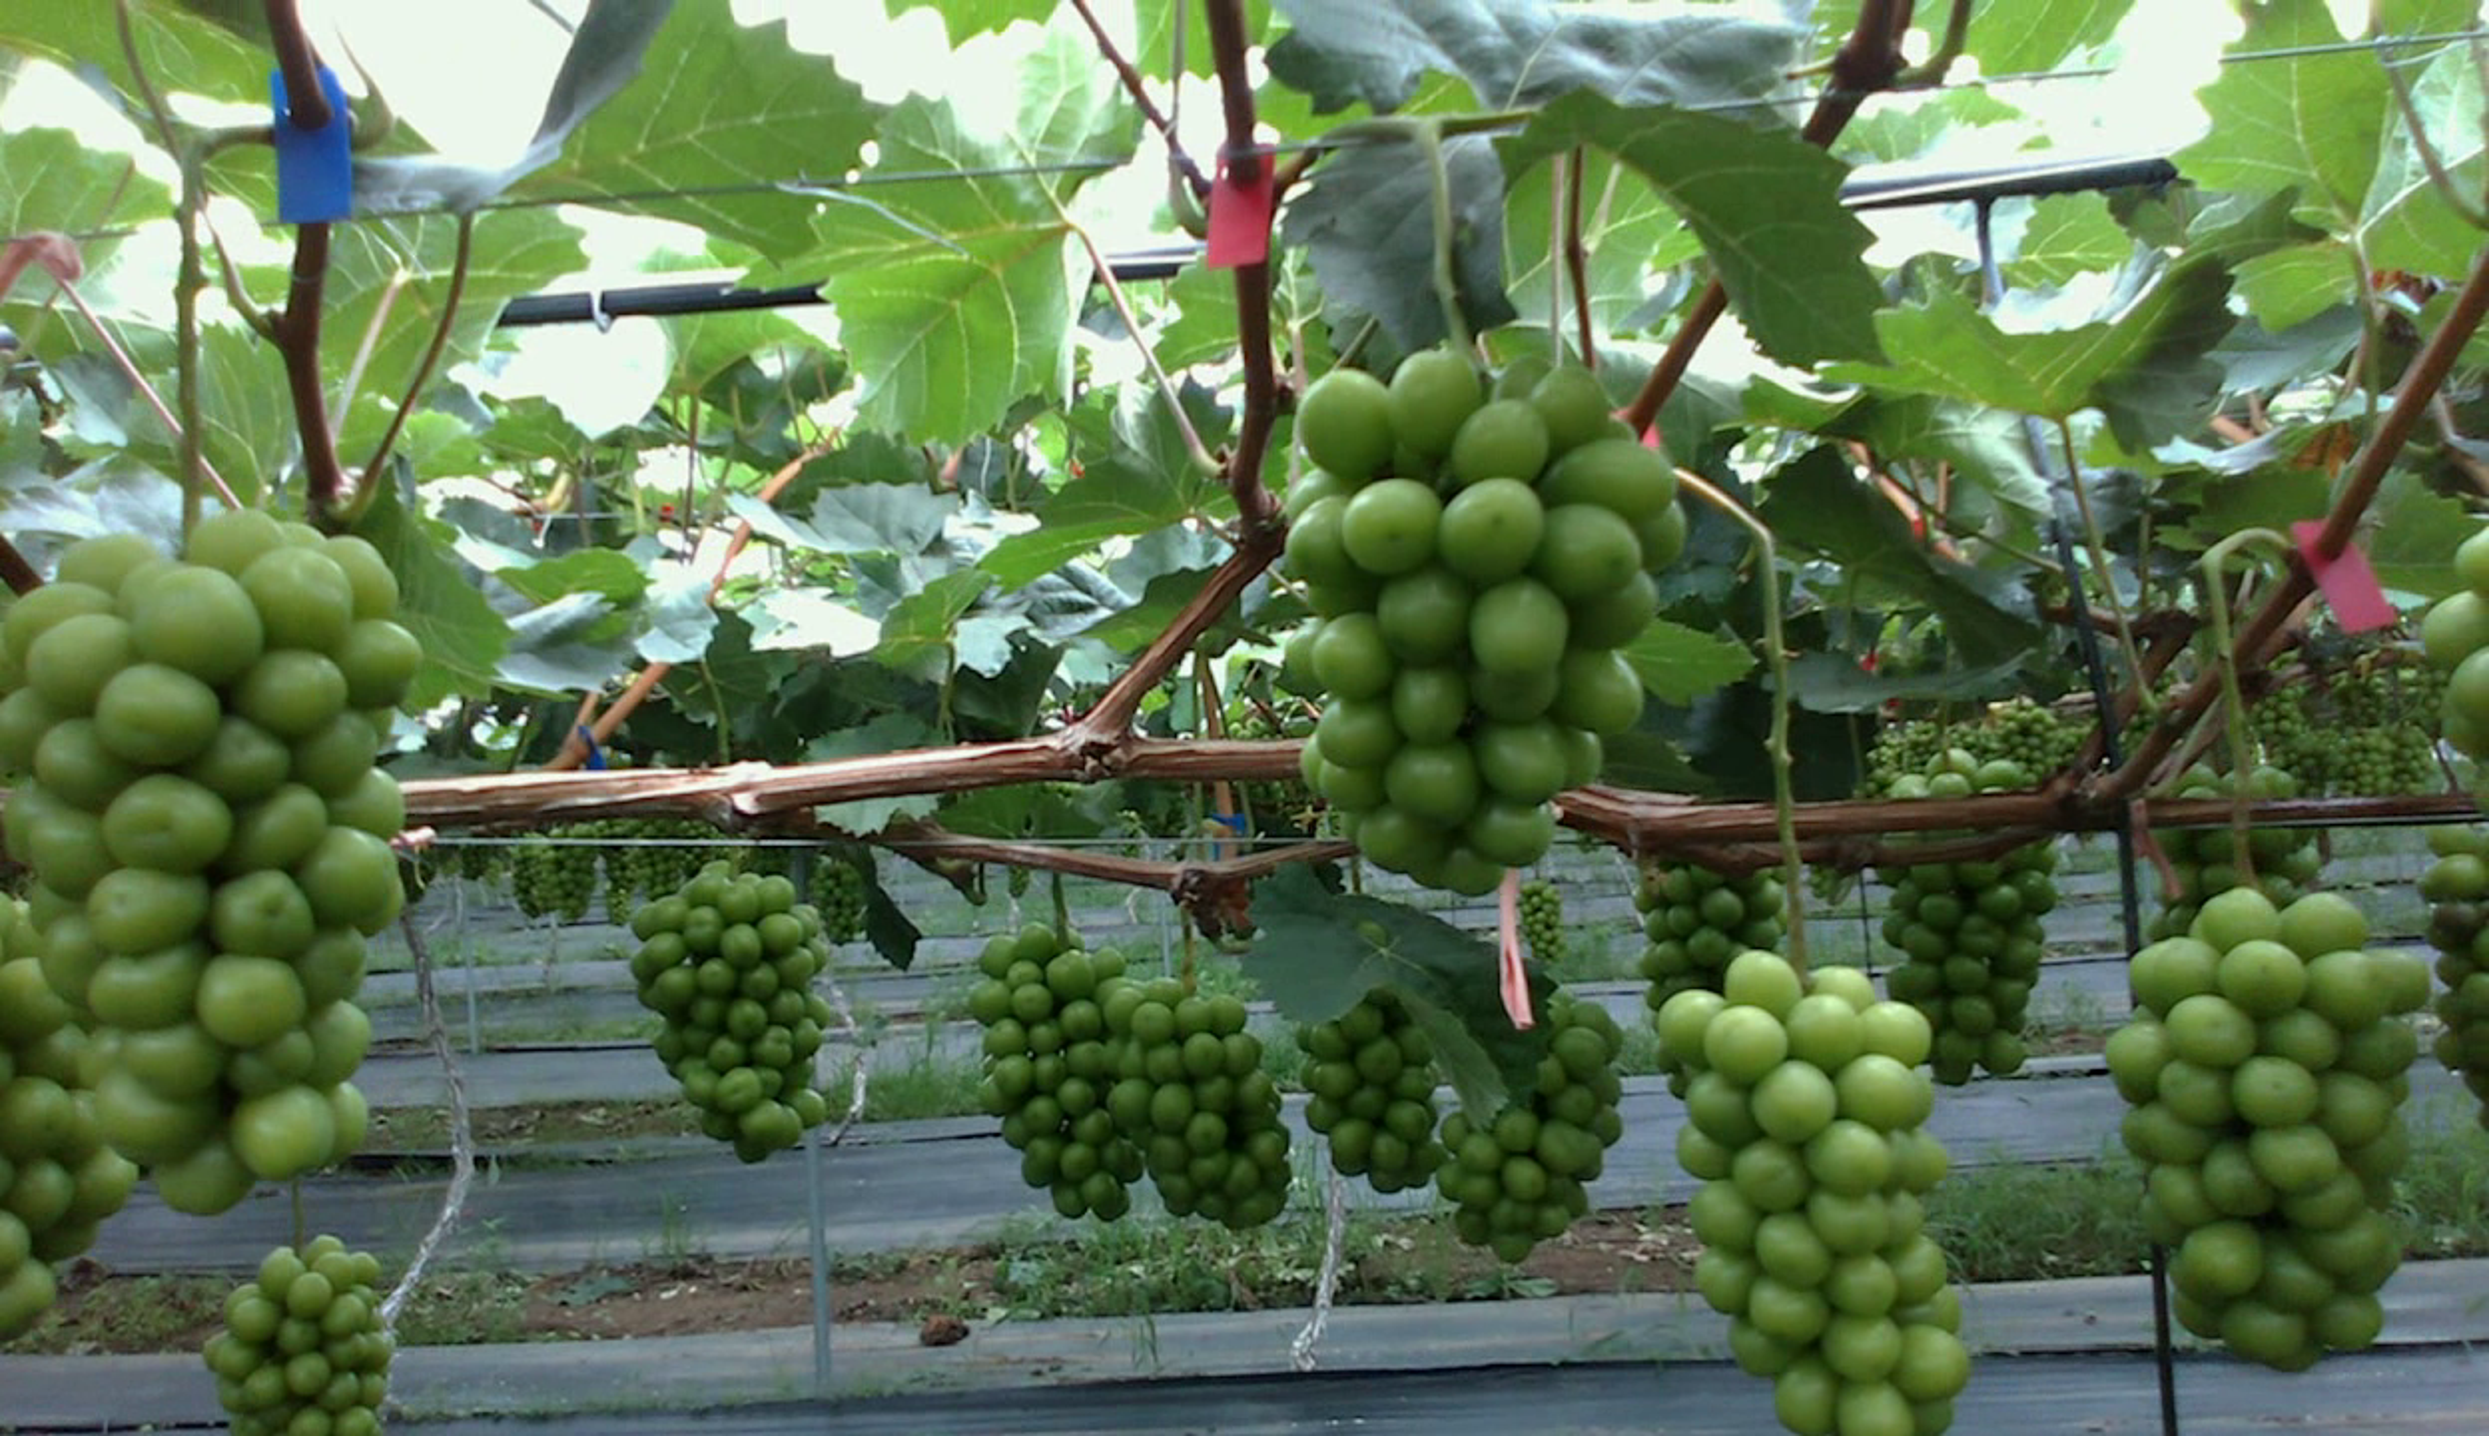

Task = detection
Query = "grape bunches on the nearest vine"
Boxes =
[0,507,423,1217]
[2100,888,2431,1376]
[1659,951,1972,1434]
[1282,349,1687,899]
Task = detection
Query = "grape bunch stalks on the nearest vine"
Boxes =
[172,122,277,550]
[1675,469,1813,997]
[1342,114,1478,365]
[2190,527,2298,896]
